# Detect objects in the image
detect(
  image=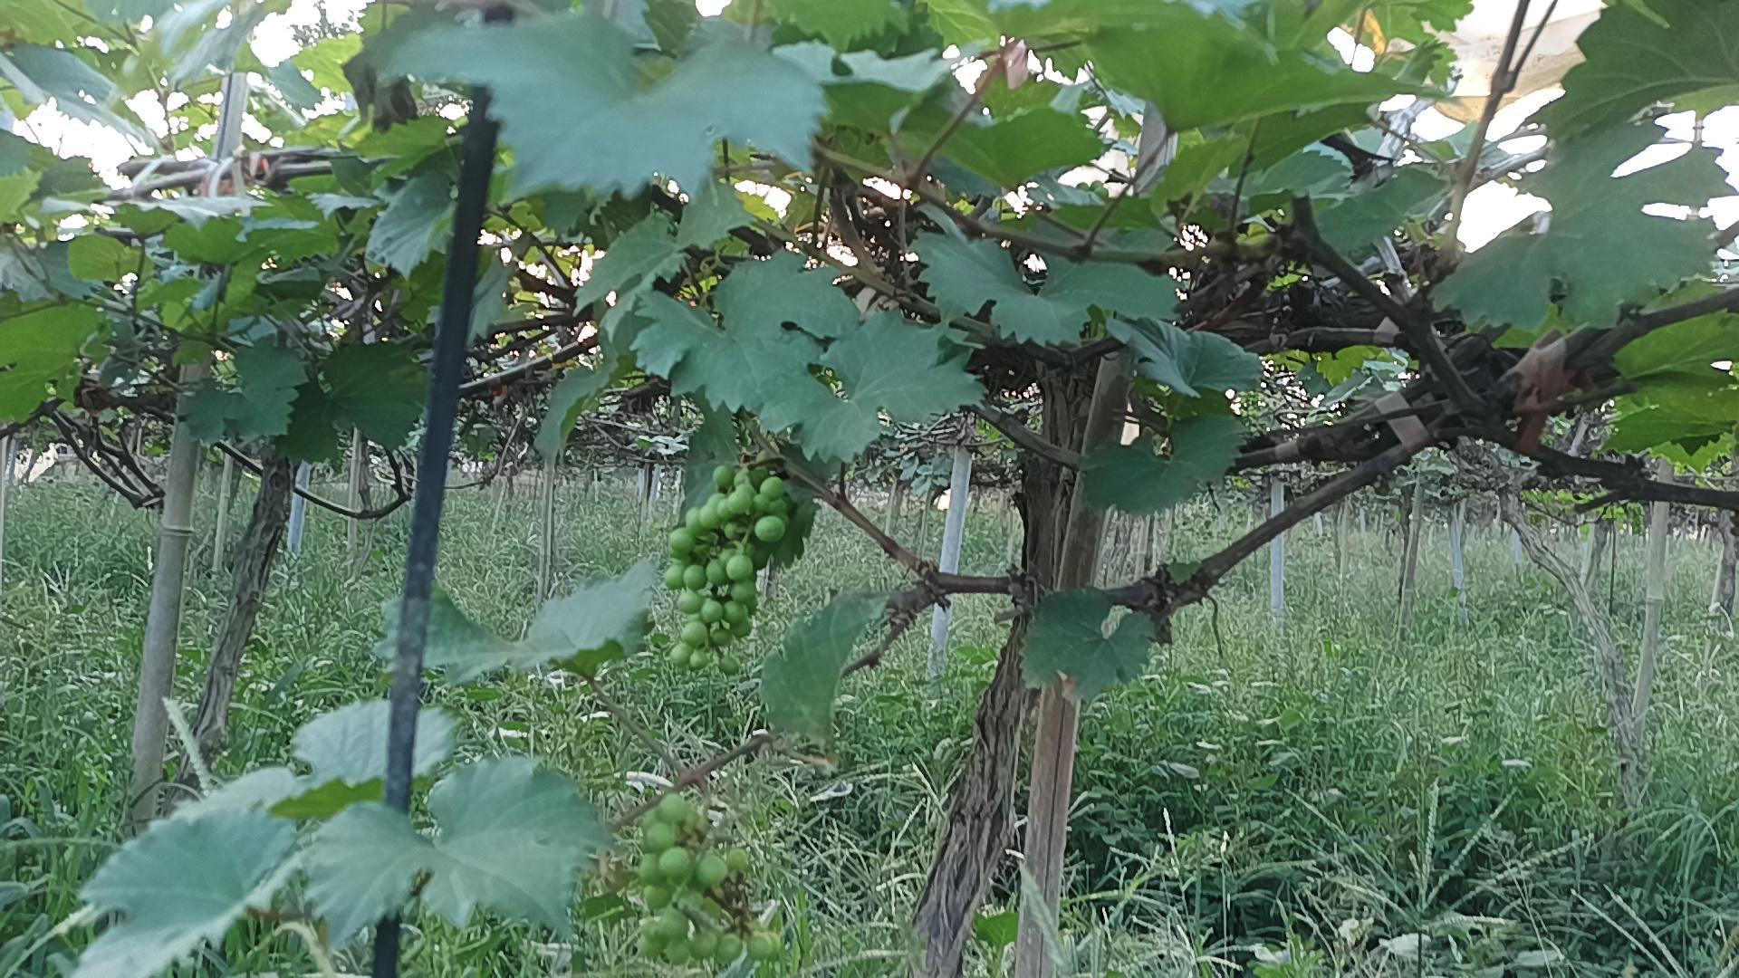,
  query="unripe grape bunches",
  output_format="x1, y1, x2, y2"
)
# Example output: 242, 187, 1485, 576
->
665, 466, 794, 669
632, 793, 783, 963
